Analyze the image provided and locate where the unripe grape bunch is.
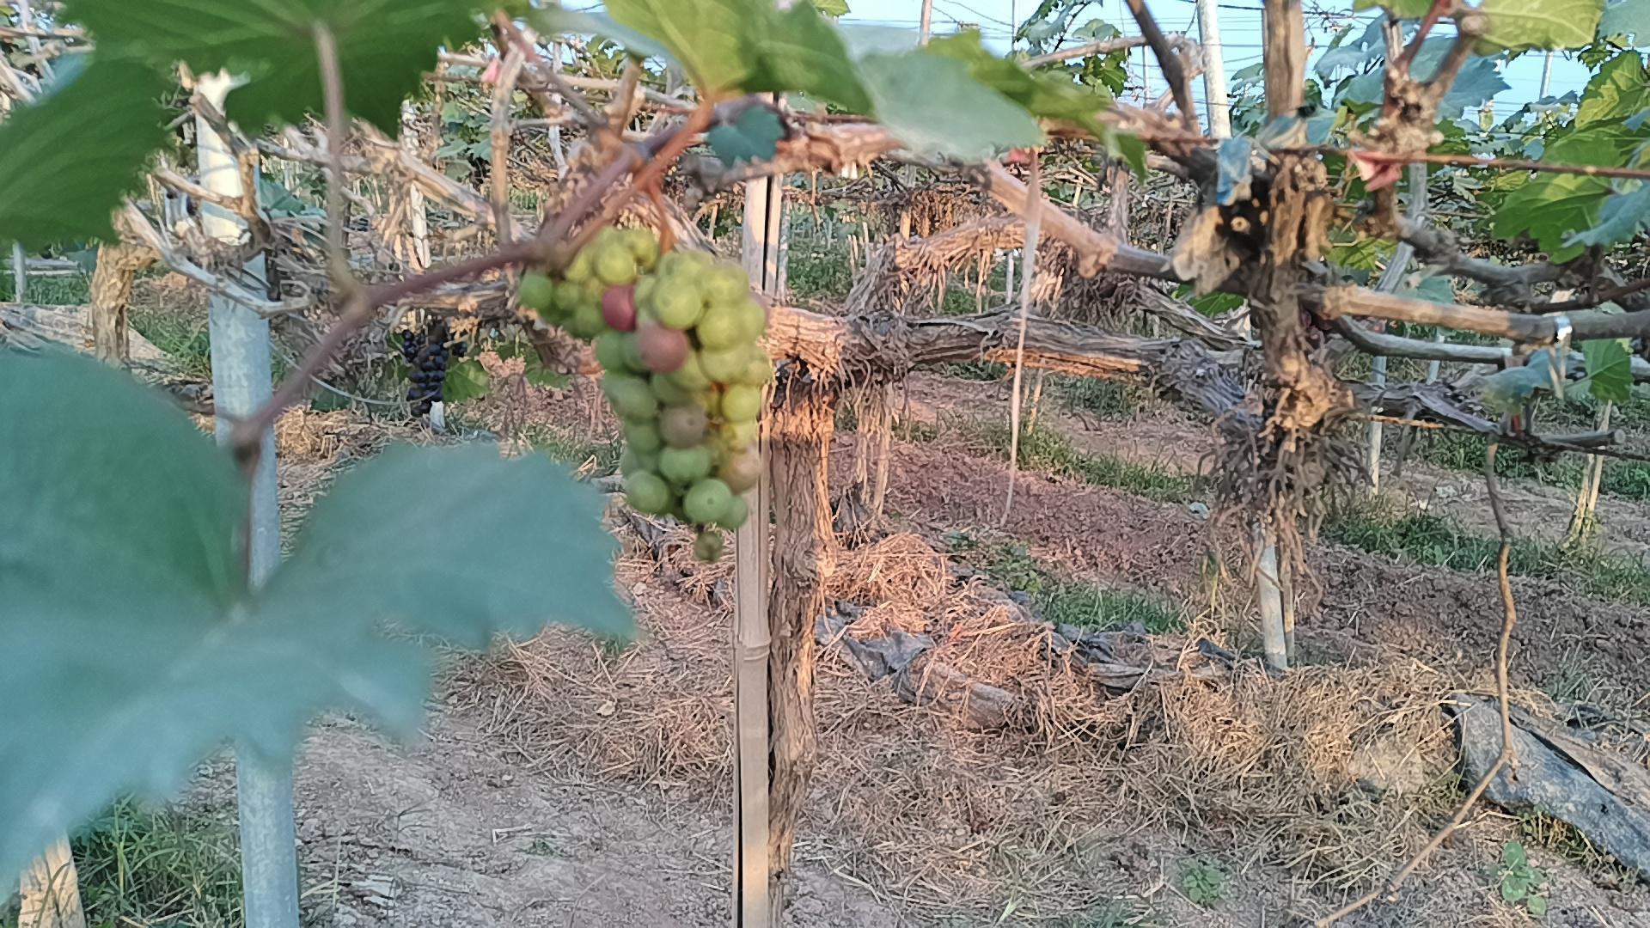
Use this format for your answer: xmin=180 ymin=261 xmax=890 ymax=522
xmin=517 ymin=227 xmax=773 ymax=562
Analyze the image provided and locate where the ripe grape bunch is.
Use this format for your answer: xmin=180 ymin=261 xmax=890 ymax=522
xmin=395 ymin=316 xmax=469 ymax=418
